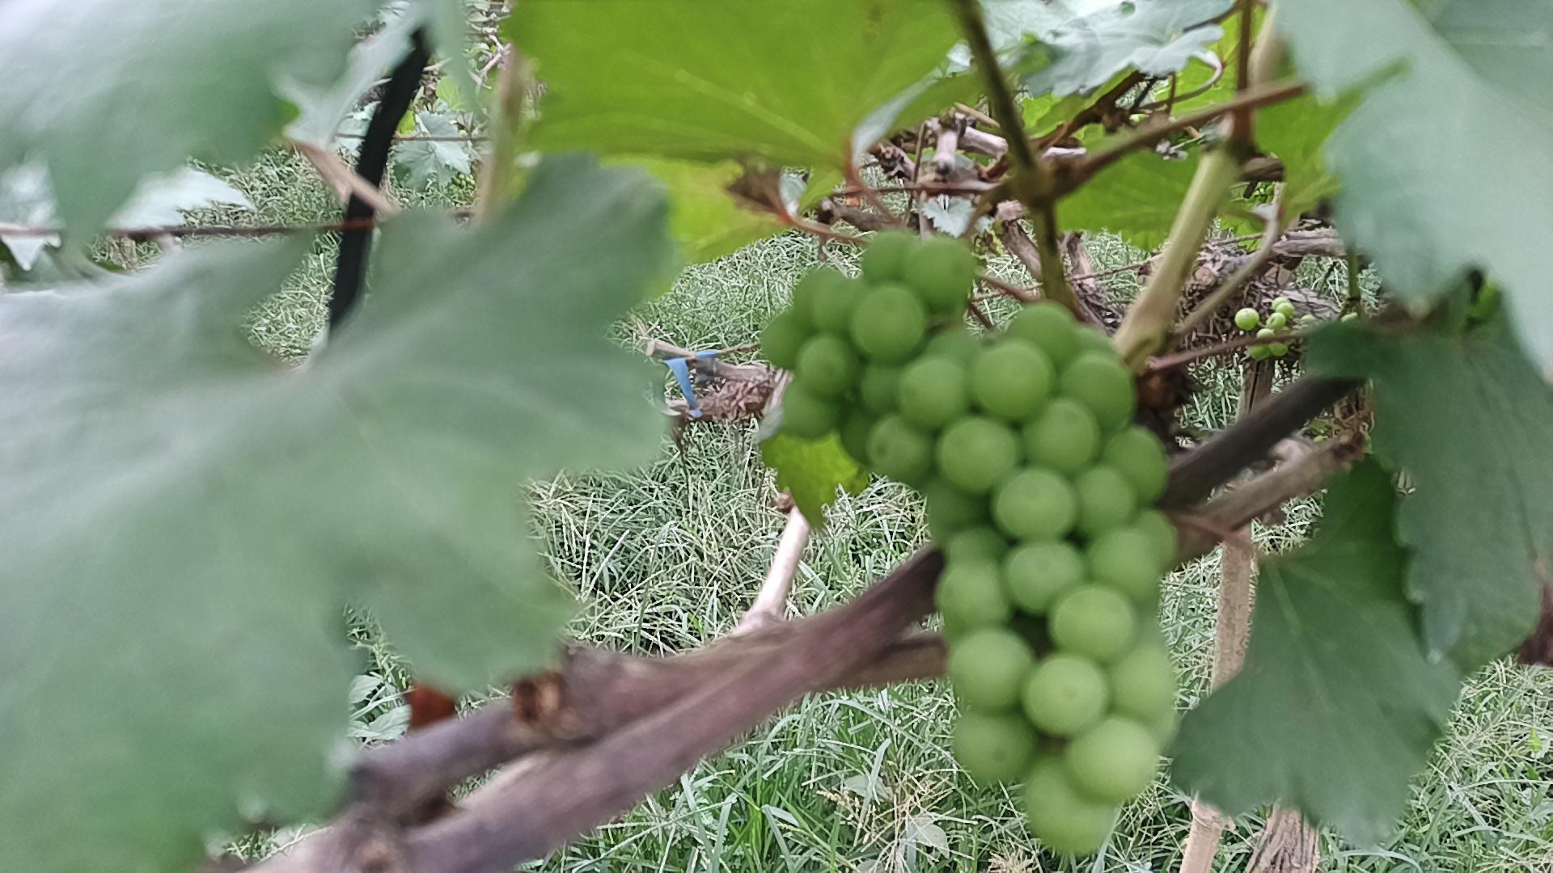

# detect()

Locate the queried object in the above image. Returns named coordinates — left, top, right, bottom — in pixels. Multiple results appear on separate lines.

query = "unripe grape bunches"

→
left=761, top=231, right=1175, bottom=855
left=1234, top=295, right=1318, bottom=361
